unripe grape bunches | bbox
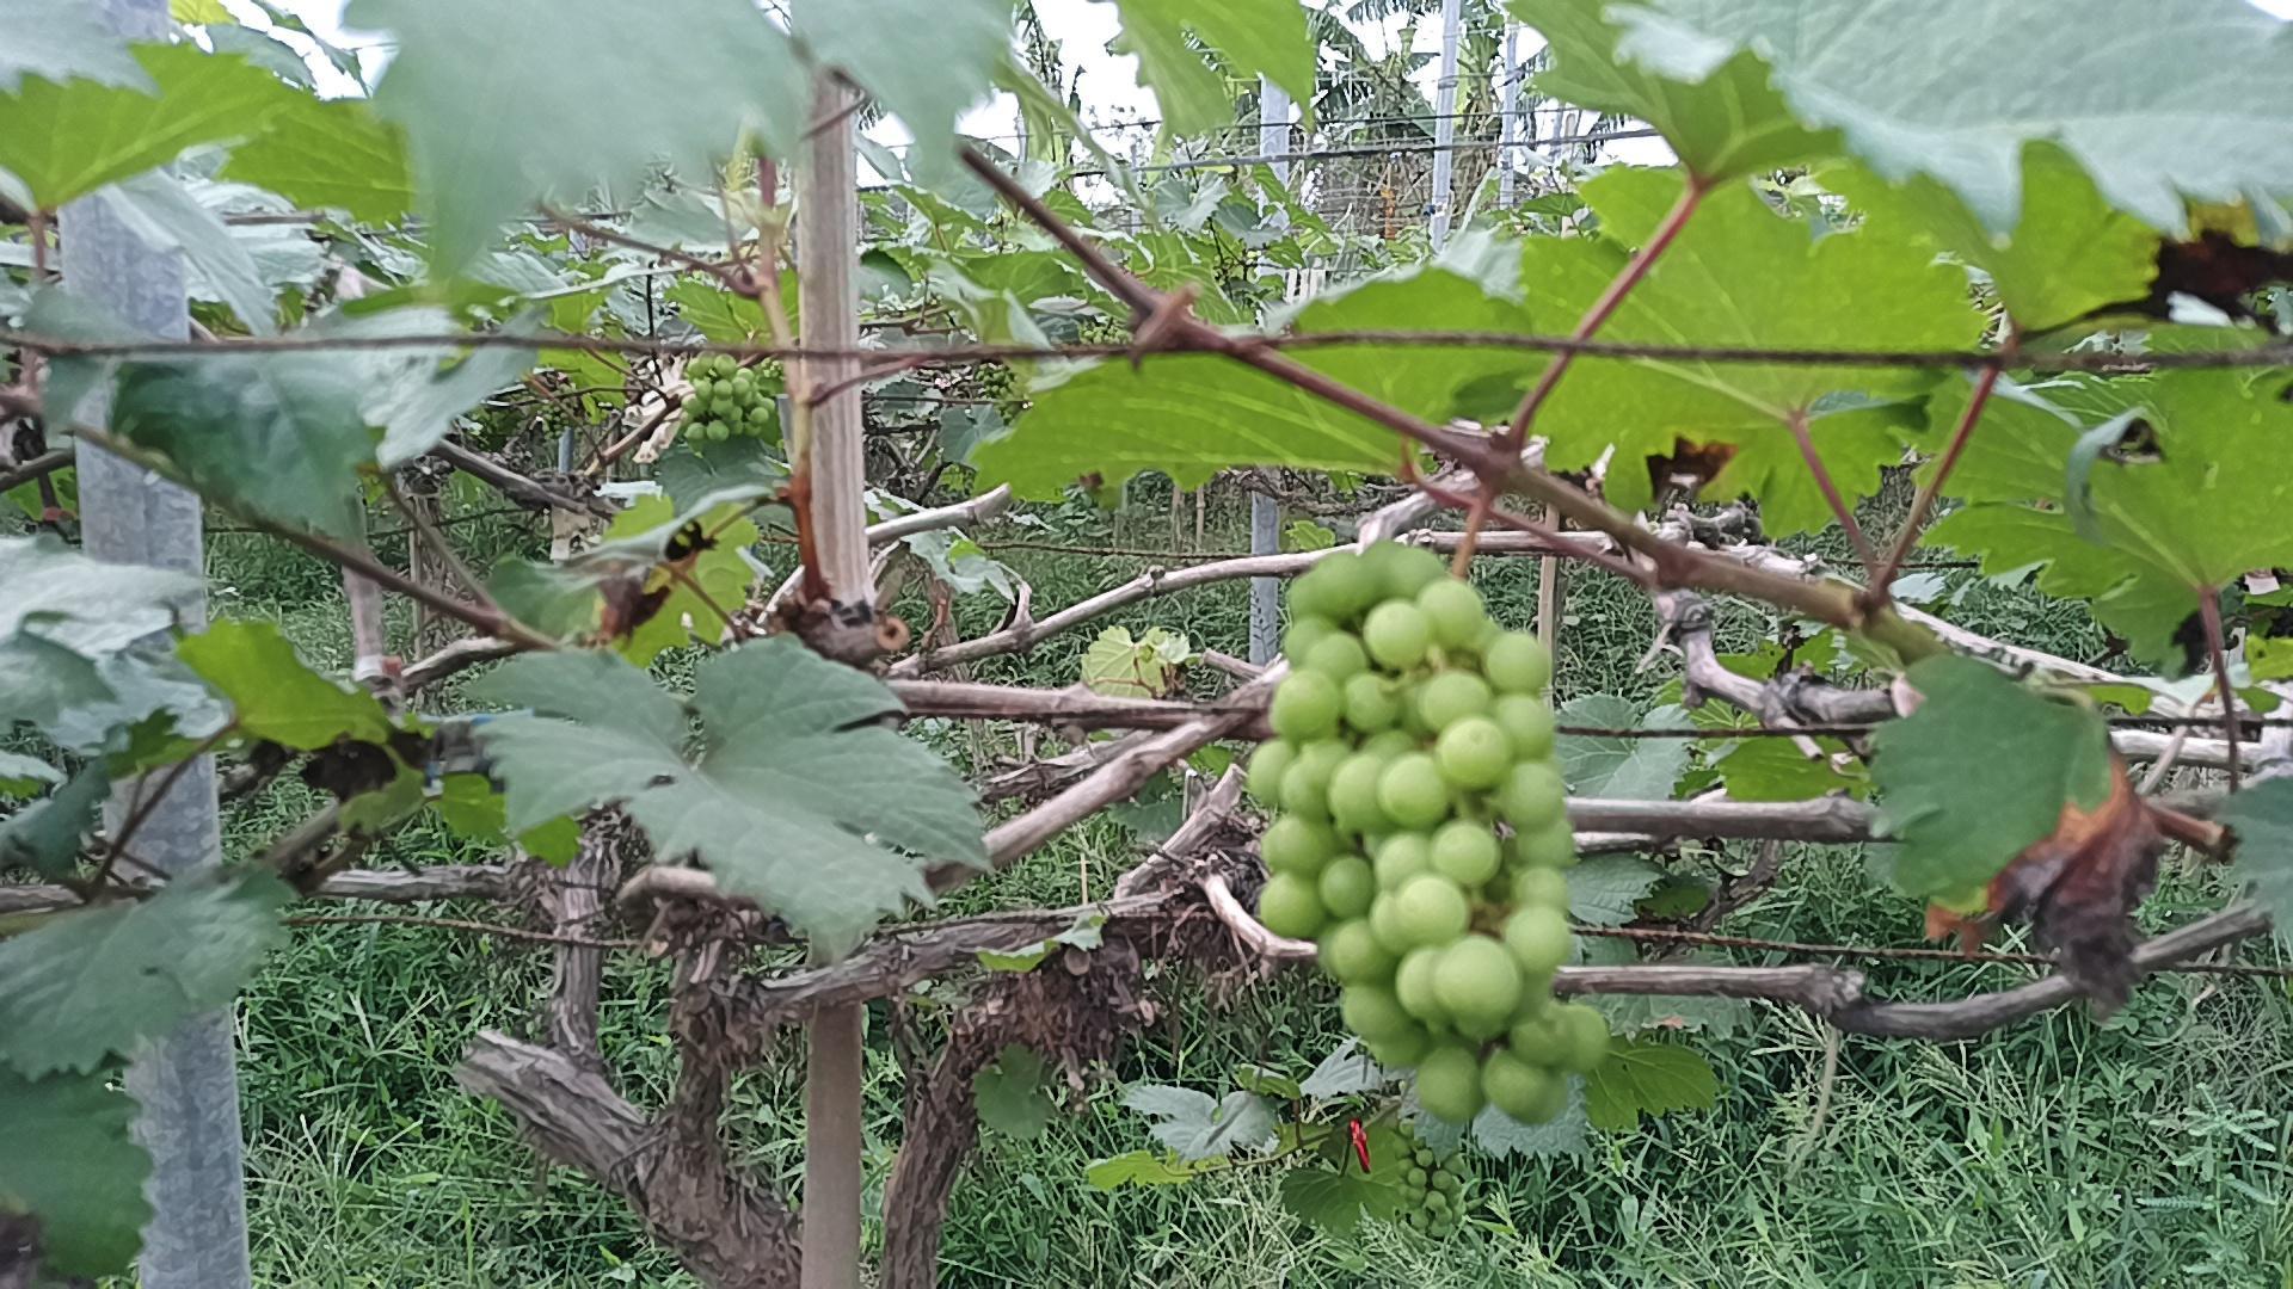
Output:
[1393,1115,1465,1227]
[678,359,779,446]
[1249,541,1609,1123]
[979,363,1029,424]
